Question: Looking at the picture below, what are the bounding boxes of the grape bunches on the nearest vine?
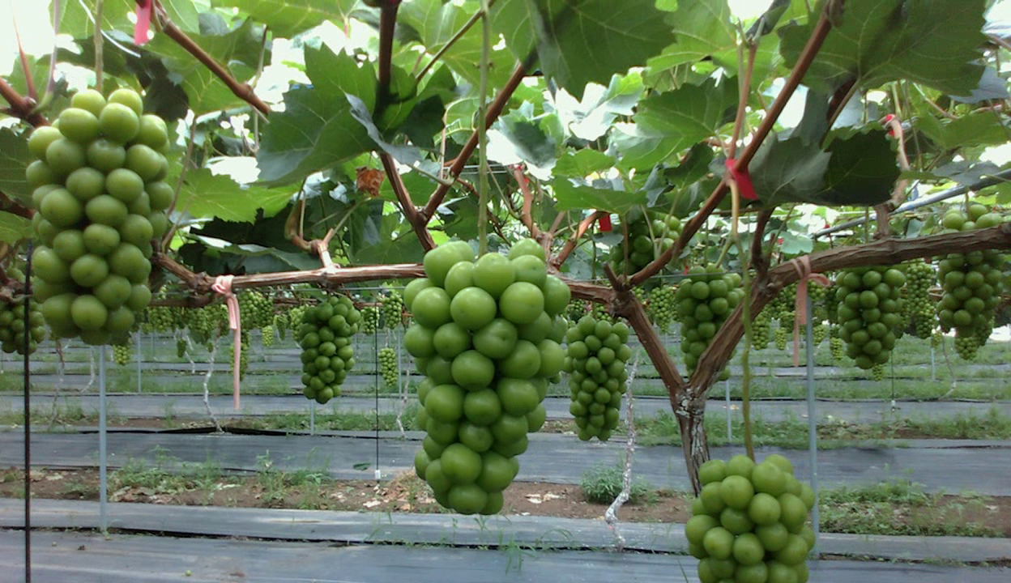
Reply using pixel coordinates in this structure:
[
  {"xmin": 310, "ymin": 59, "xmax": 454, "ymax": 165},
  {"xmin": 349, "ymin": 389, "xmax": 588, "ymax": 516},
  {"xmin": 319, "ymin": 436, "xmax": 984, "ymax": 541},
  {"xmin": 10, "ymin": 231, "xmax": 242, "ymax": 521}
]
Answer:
[
  {"xmin": 24, "ymin": 88, "xmax": 173, "ymax": 347},
  {"xmin": 685, "ymin": 453, "xmax": 817, "ymax": 582},
  {"xmin": 402, "ymin": 236, "xmax": 571, "ymax": 516}
]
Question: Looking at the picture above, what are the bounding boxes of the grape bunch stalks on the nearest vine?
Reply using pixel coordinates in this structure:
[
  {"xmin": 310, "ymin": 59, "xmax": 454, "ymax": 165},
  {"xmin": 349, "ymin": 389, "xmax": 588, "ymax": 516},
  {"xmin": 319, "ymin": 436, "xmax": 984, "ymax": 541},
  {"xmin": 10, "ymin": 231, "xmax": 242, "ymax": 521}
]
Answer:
[
  {"xmin": 95, "ymin": 2, "xmax": 105, "ymax": 96},
  {"xmin": 478, "ymin": 1, "xmax": 490, "ymax": 257},
  {"xmin": 727, "ymin": 178, "xmax": 756, "ymax": 463}
]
